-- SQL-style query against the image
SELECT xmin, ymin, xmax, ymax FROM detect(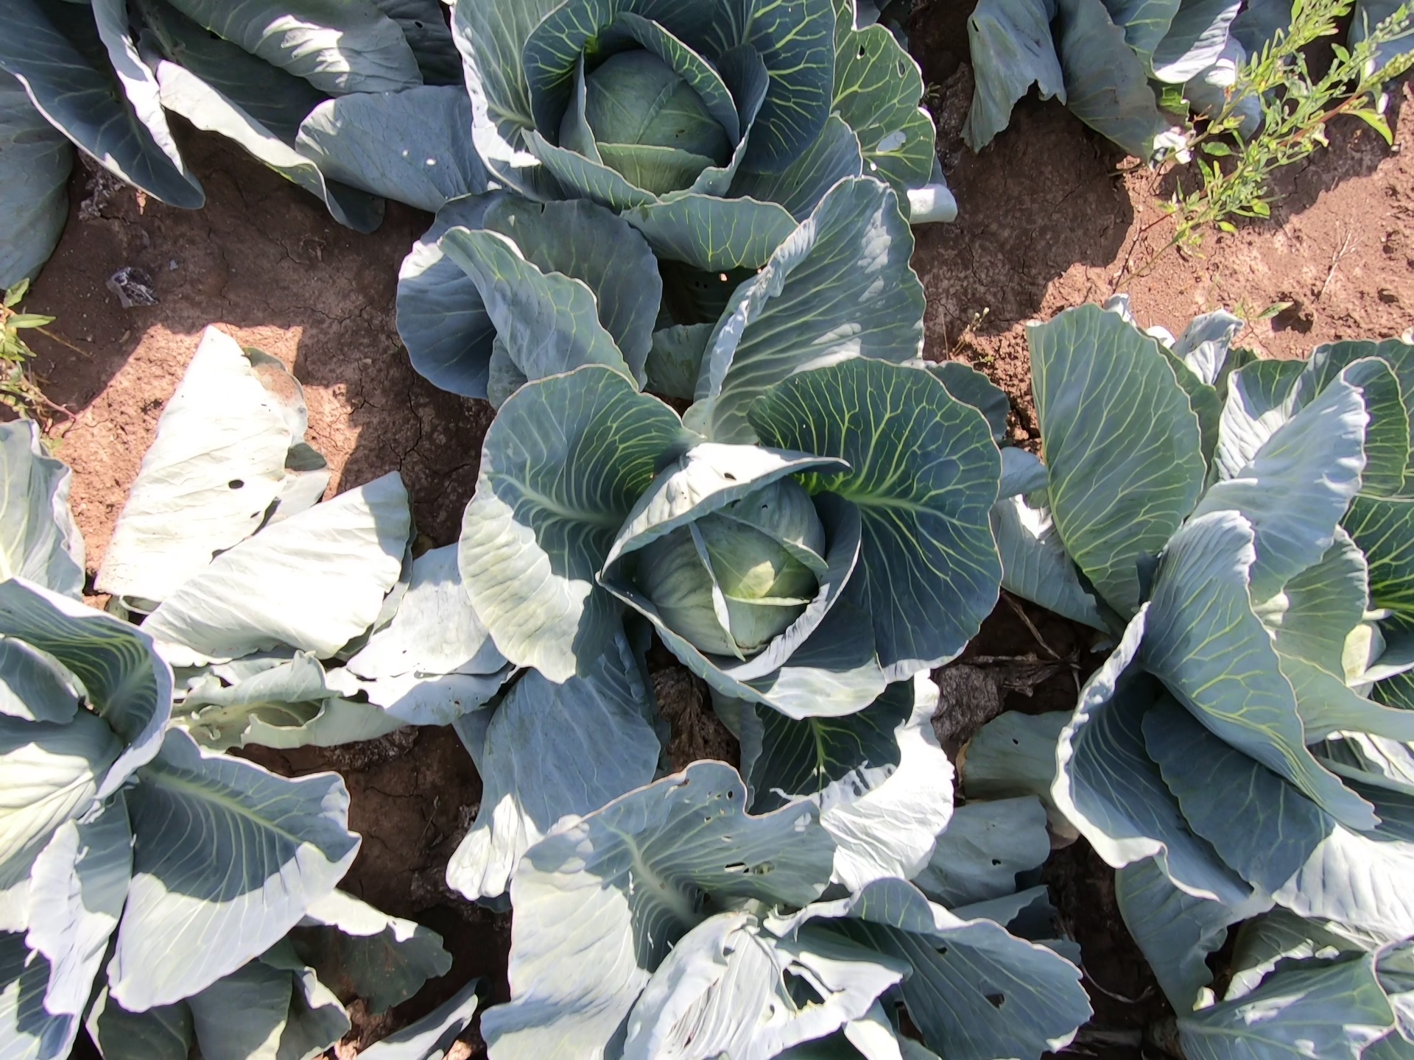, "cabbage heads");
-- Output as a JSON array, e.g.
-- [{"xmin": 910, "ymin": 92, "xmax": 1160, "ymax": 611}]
[
  {"xmin": 645, "ymin": 934, "xmax": 863, "ymax": 1056},
  {"xmin": 560, "ymin": 43, "xmax": 736, "ymax": 203},
  {"xmin": 1200, "ymin": 568, "xmax": 1387, "ymax": 735},
  {"xmin": 639, "ymin": 459, "xmax": 826, "ymax": 660}
]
